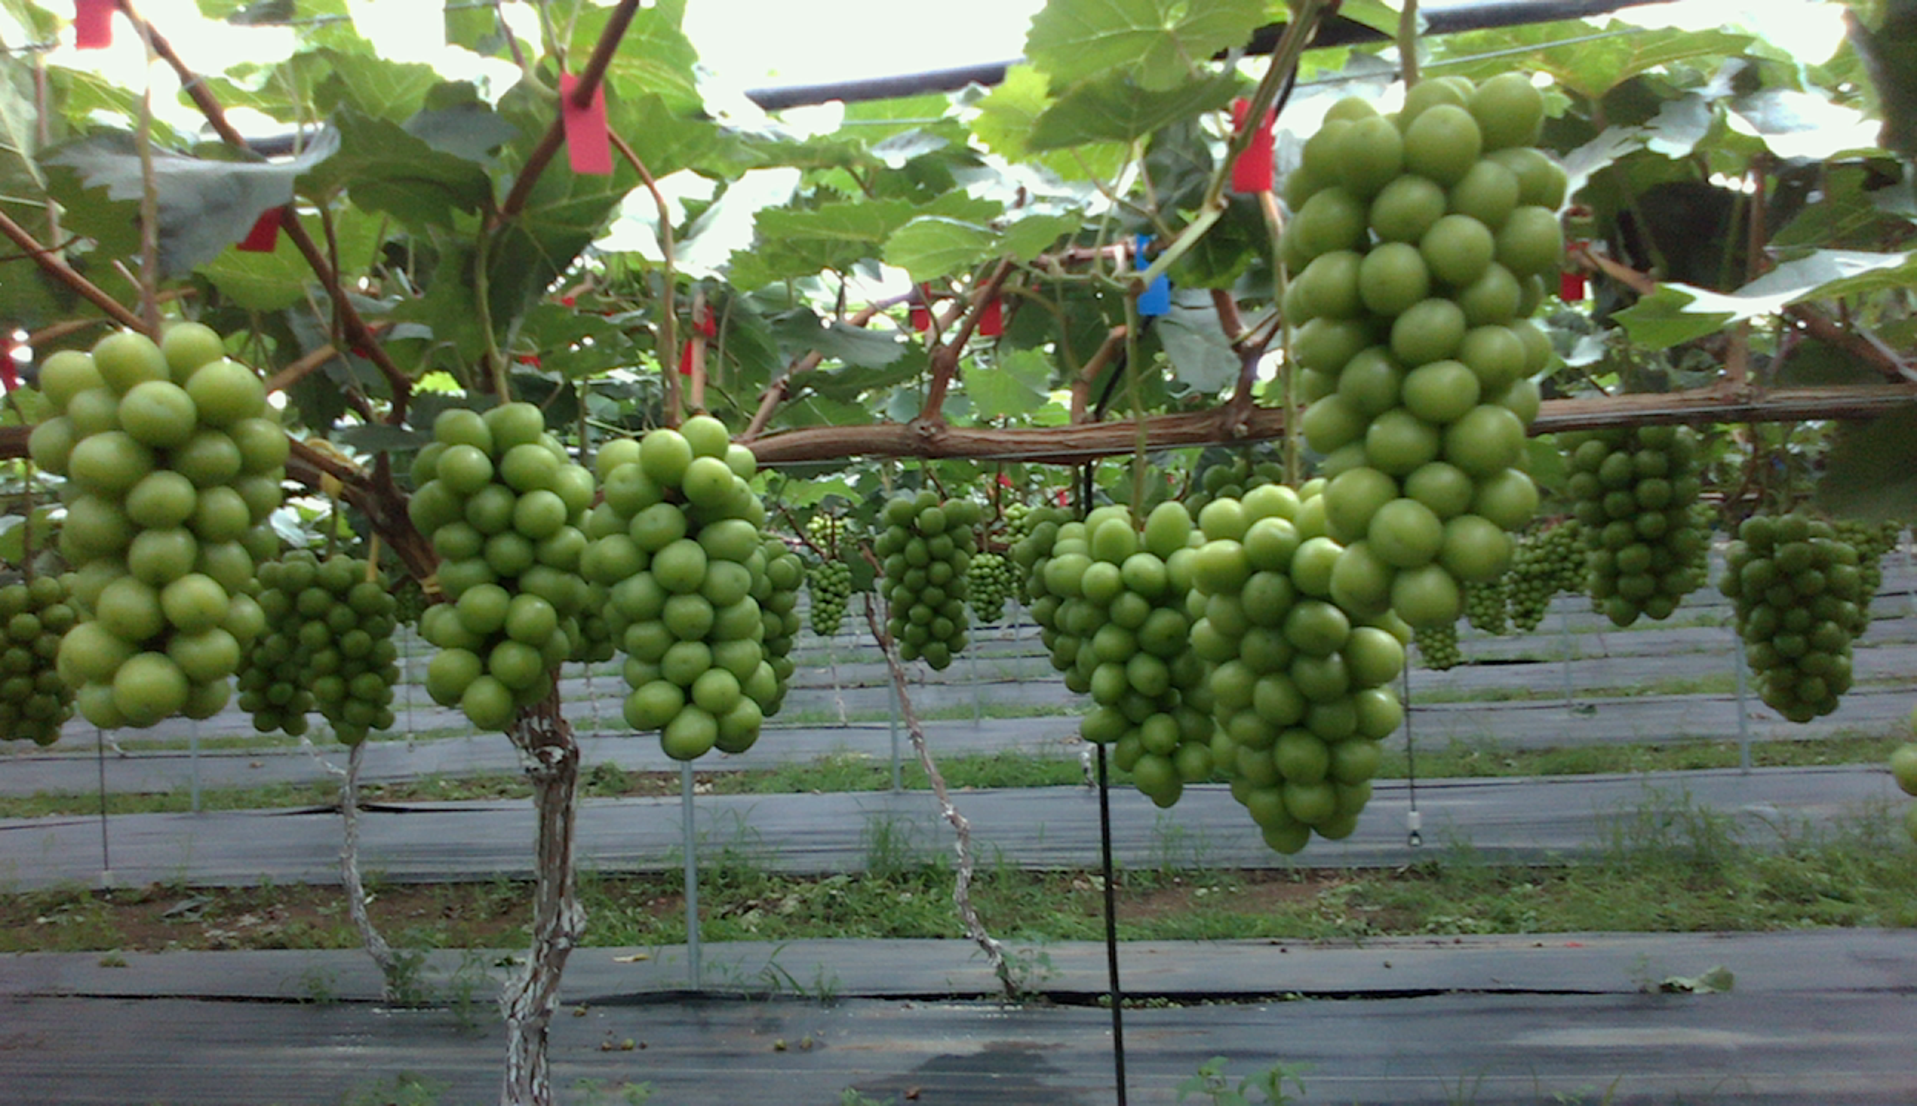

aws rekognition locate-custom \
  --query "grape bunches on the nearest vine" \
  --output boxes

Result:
[1186,479,1410,854]
[410,402,593,730]
[578,416,779,765]
[26,326,287,731]
[1043,501,1215,810]
[1283,72,1564,633]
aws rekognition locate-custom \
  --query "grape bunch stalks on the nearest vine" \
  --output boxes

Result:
[1258,192,1296,485]
[475,241,510,402]
[137,89,161,344]
[1124,303,1144,535]
[610,129,680,426]
[1399,2,1419,86]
